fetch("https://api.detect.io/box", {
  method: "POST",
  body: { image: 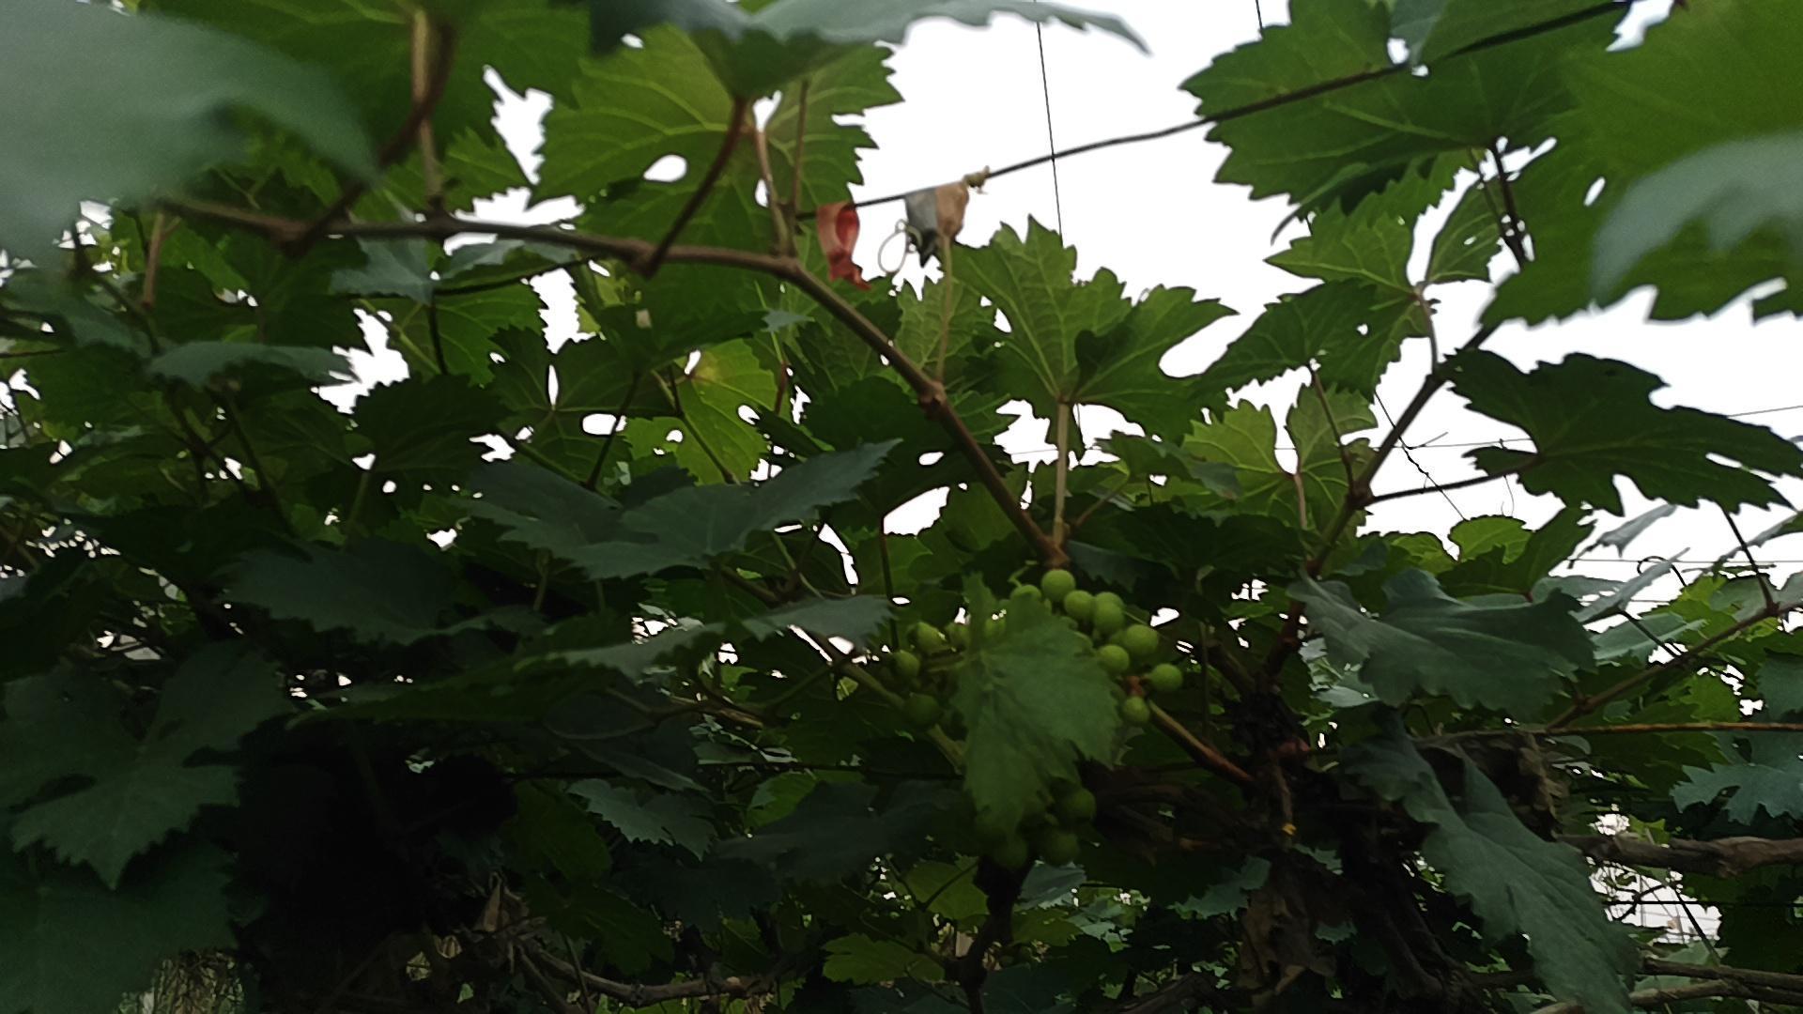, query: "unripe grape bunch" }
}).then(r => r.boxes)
[886,568,1183,871]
